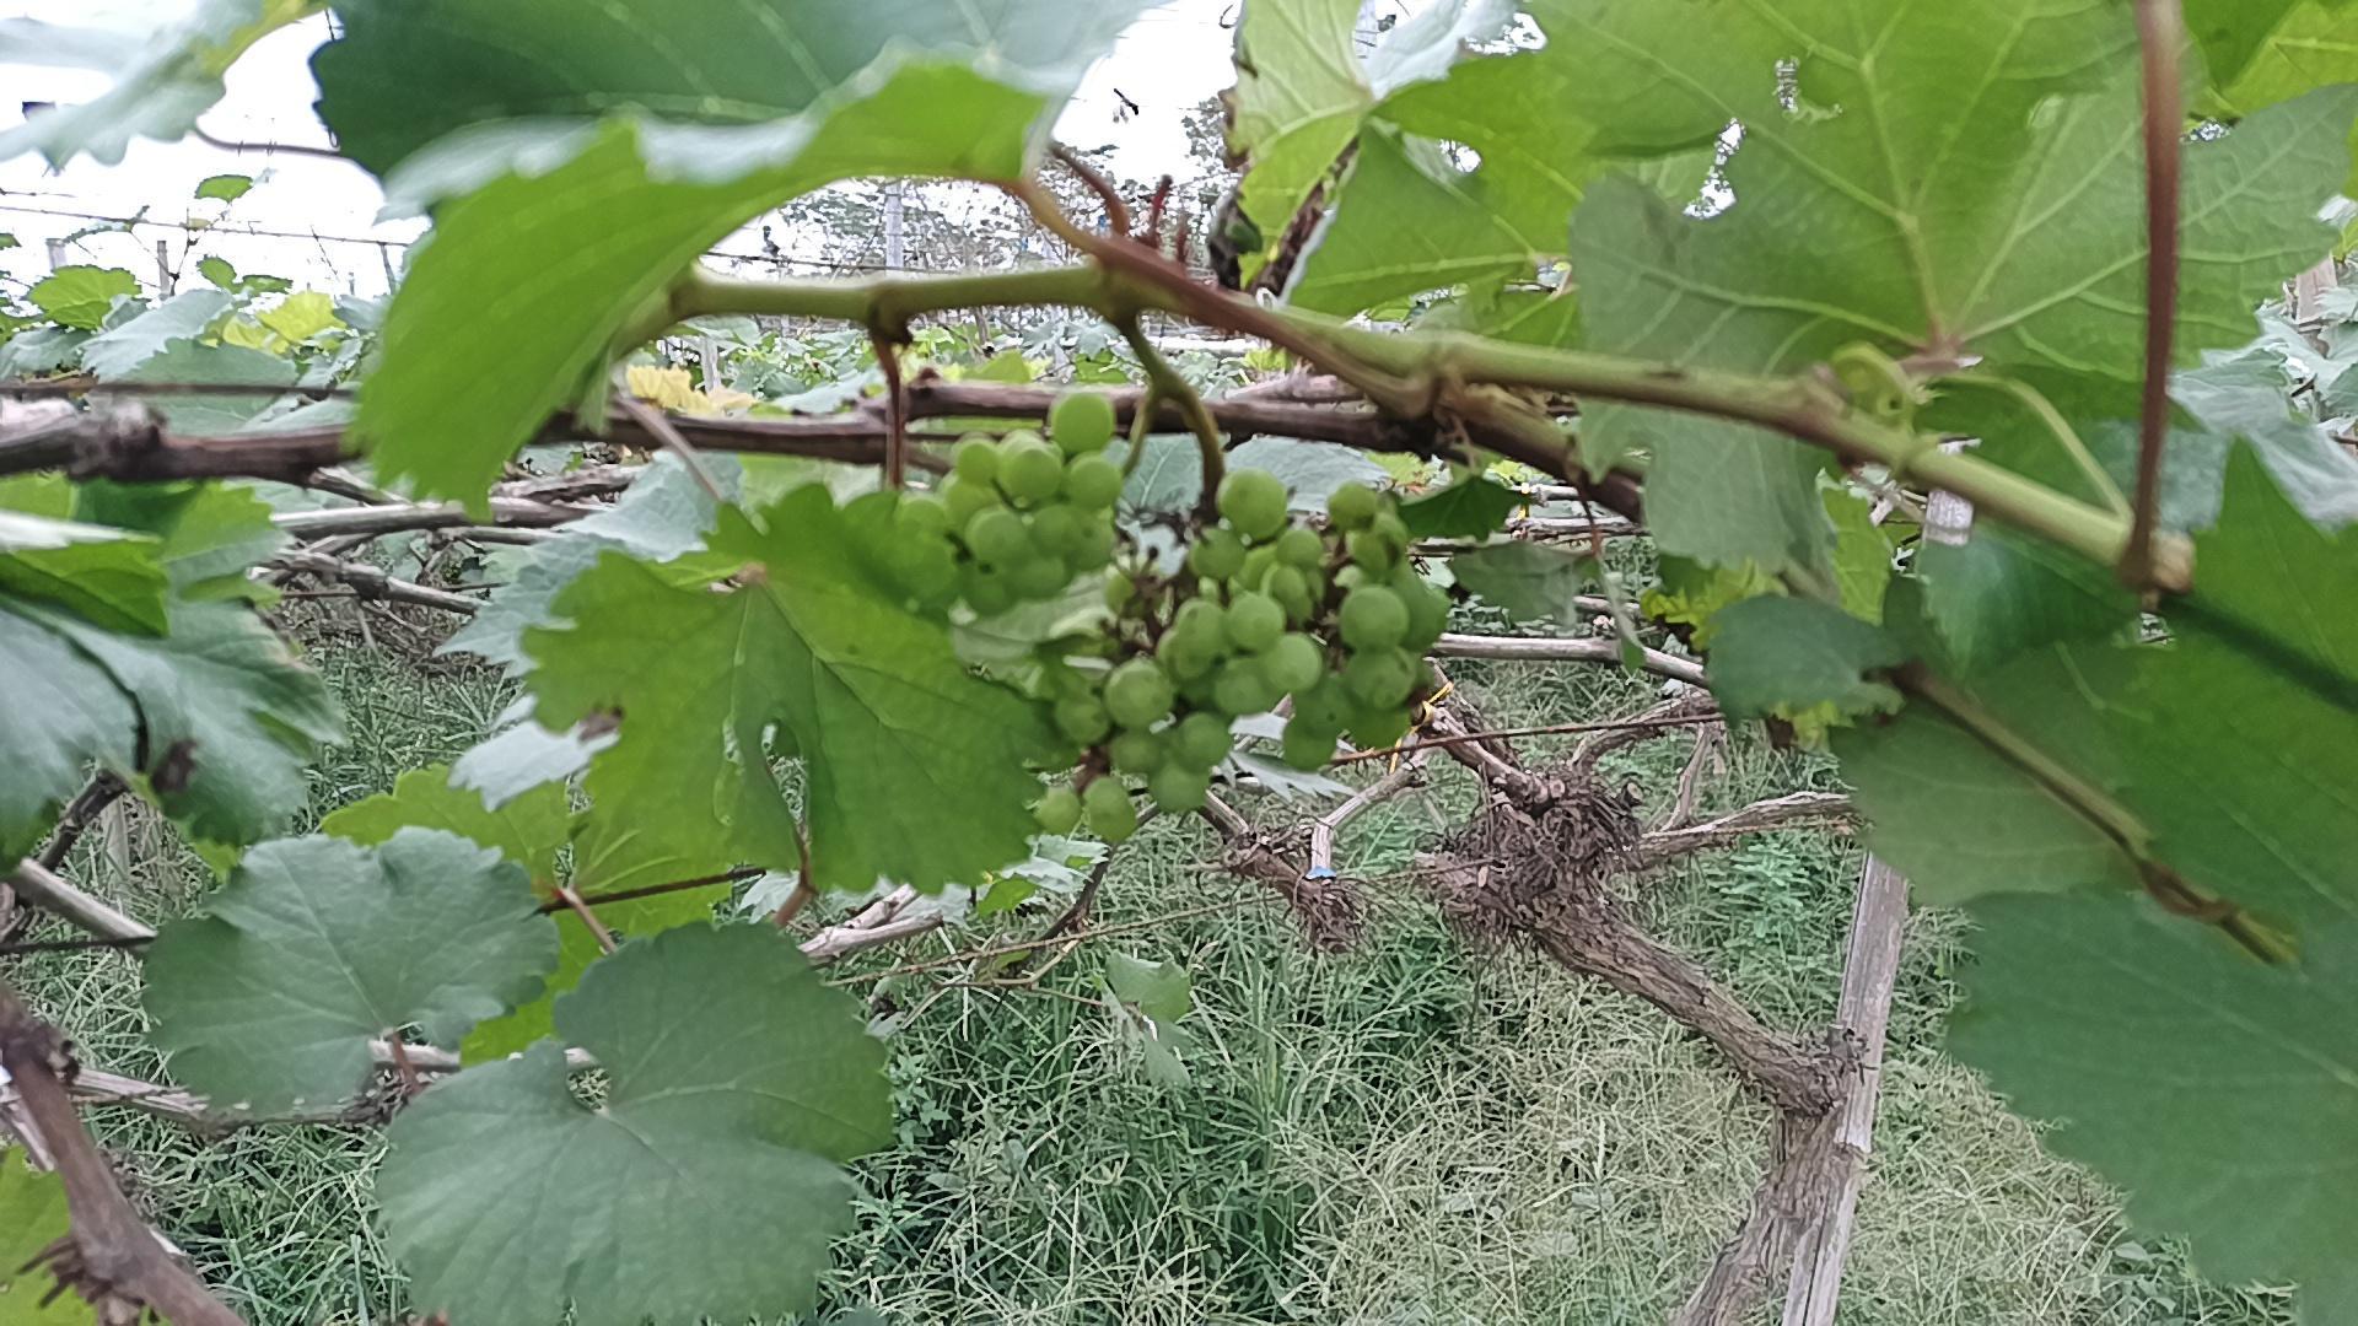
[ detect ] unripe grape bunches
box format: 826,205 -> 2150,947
1035,471 -> 1444,841
904,393 -> 1121,615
